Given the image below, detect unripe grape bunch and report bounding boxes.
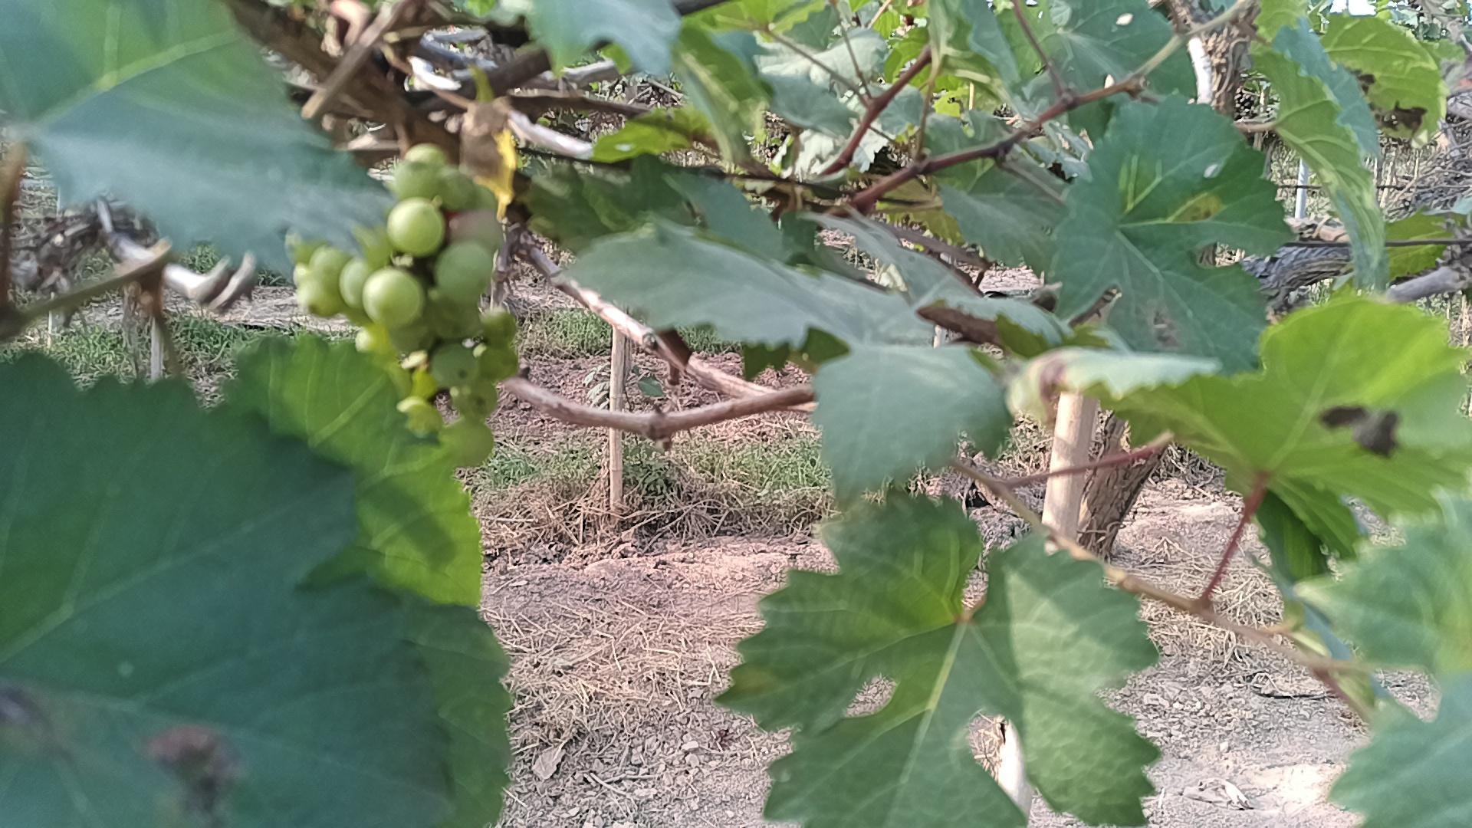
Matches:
[287,144,517,467]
